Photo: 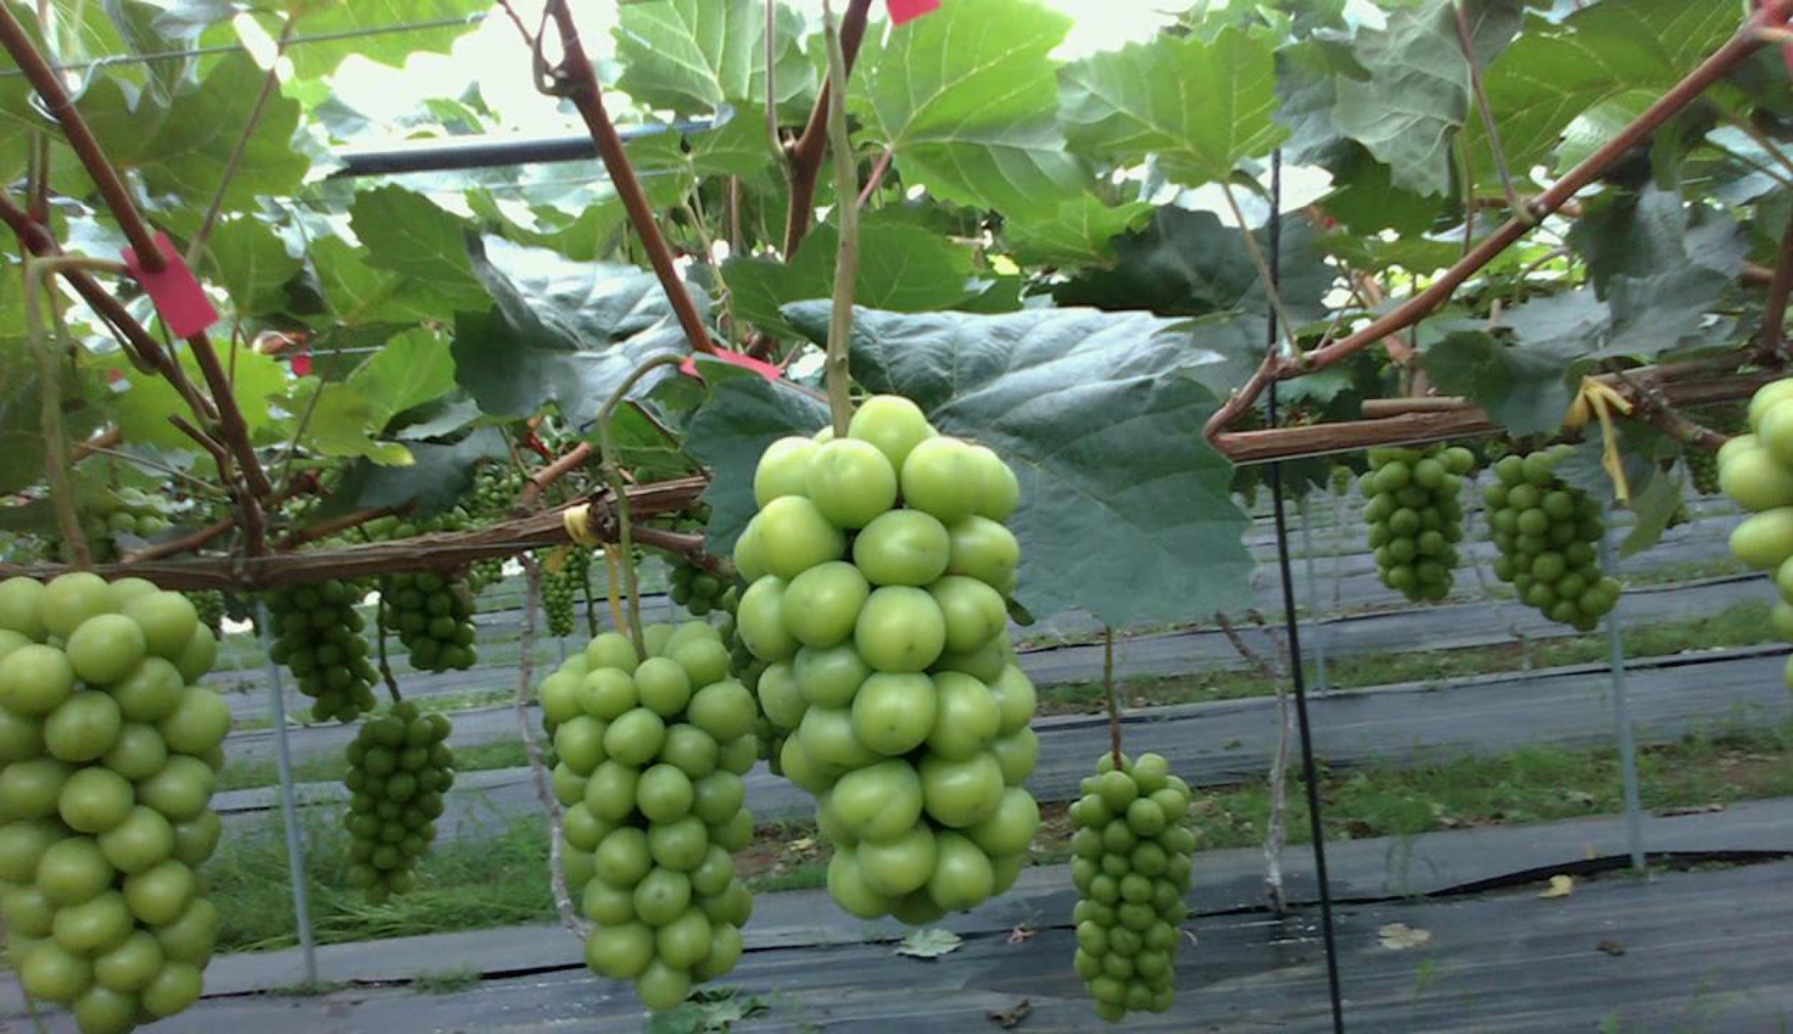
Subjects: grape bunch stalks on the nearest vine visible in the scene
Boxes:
[822,1,859,438]
[23,256,132,569]
[599,358,652,661]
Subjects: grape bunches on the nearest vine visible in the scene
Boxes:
[0,574,231,1033]
[734,395,1040,929]
[1715,376,1792,642]
[537,620,759,1014]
